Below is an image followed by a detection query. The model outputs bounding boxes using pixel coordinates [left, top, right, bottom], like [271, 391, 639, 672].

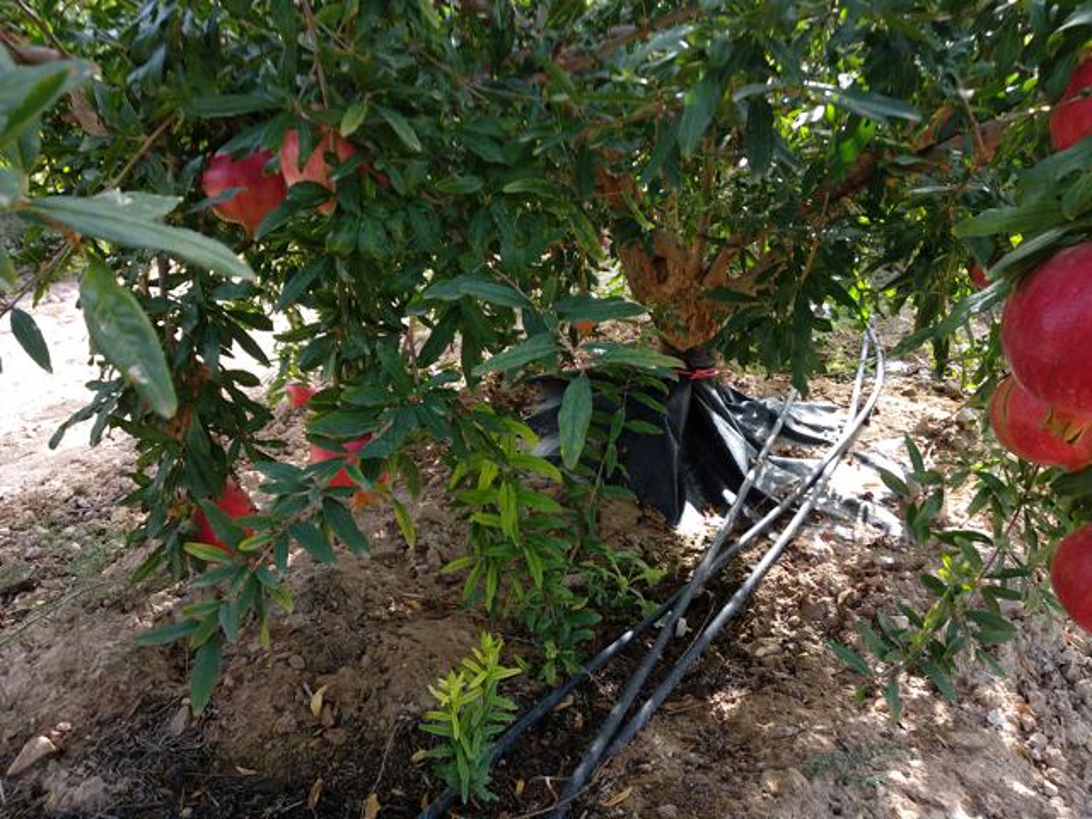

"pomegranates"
[278, 128, 360, 217]
[311, 433, 384, 507]
[1051, 55, 1092, 155]
[201, 148, 290, 239]
[991, 377, 1092, 466]
[1049, 526, 1092, 635]
[1000, 241, 1092, 450]
[193, 481, 256, 555]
